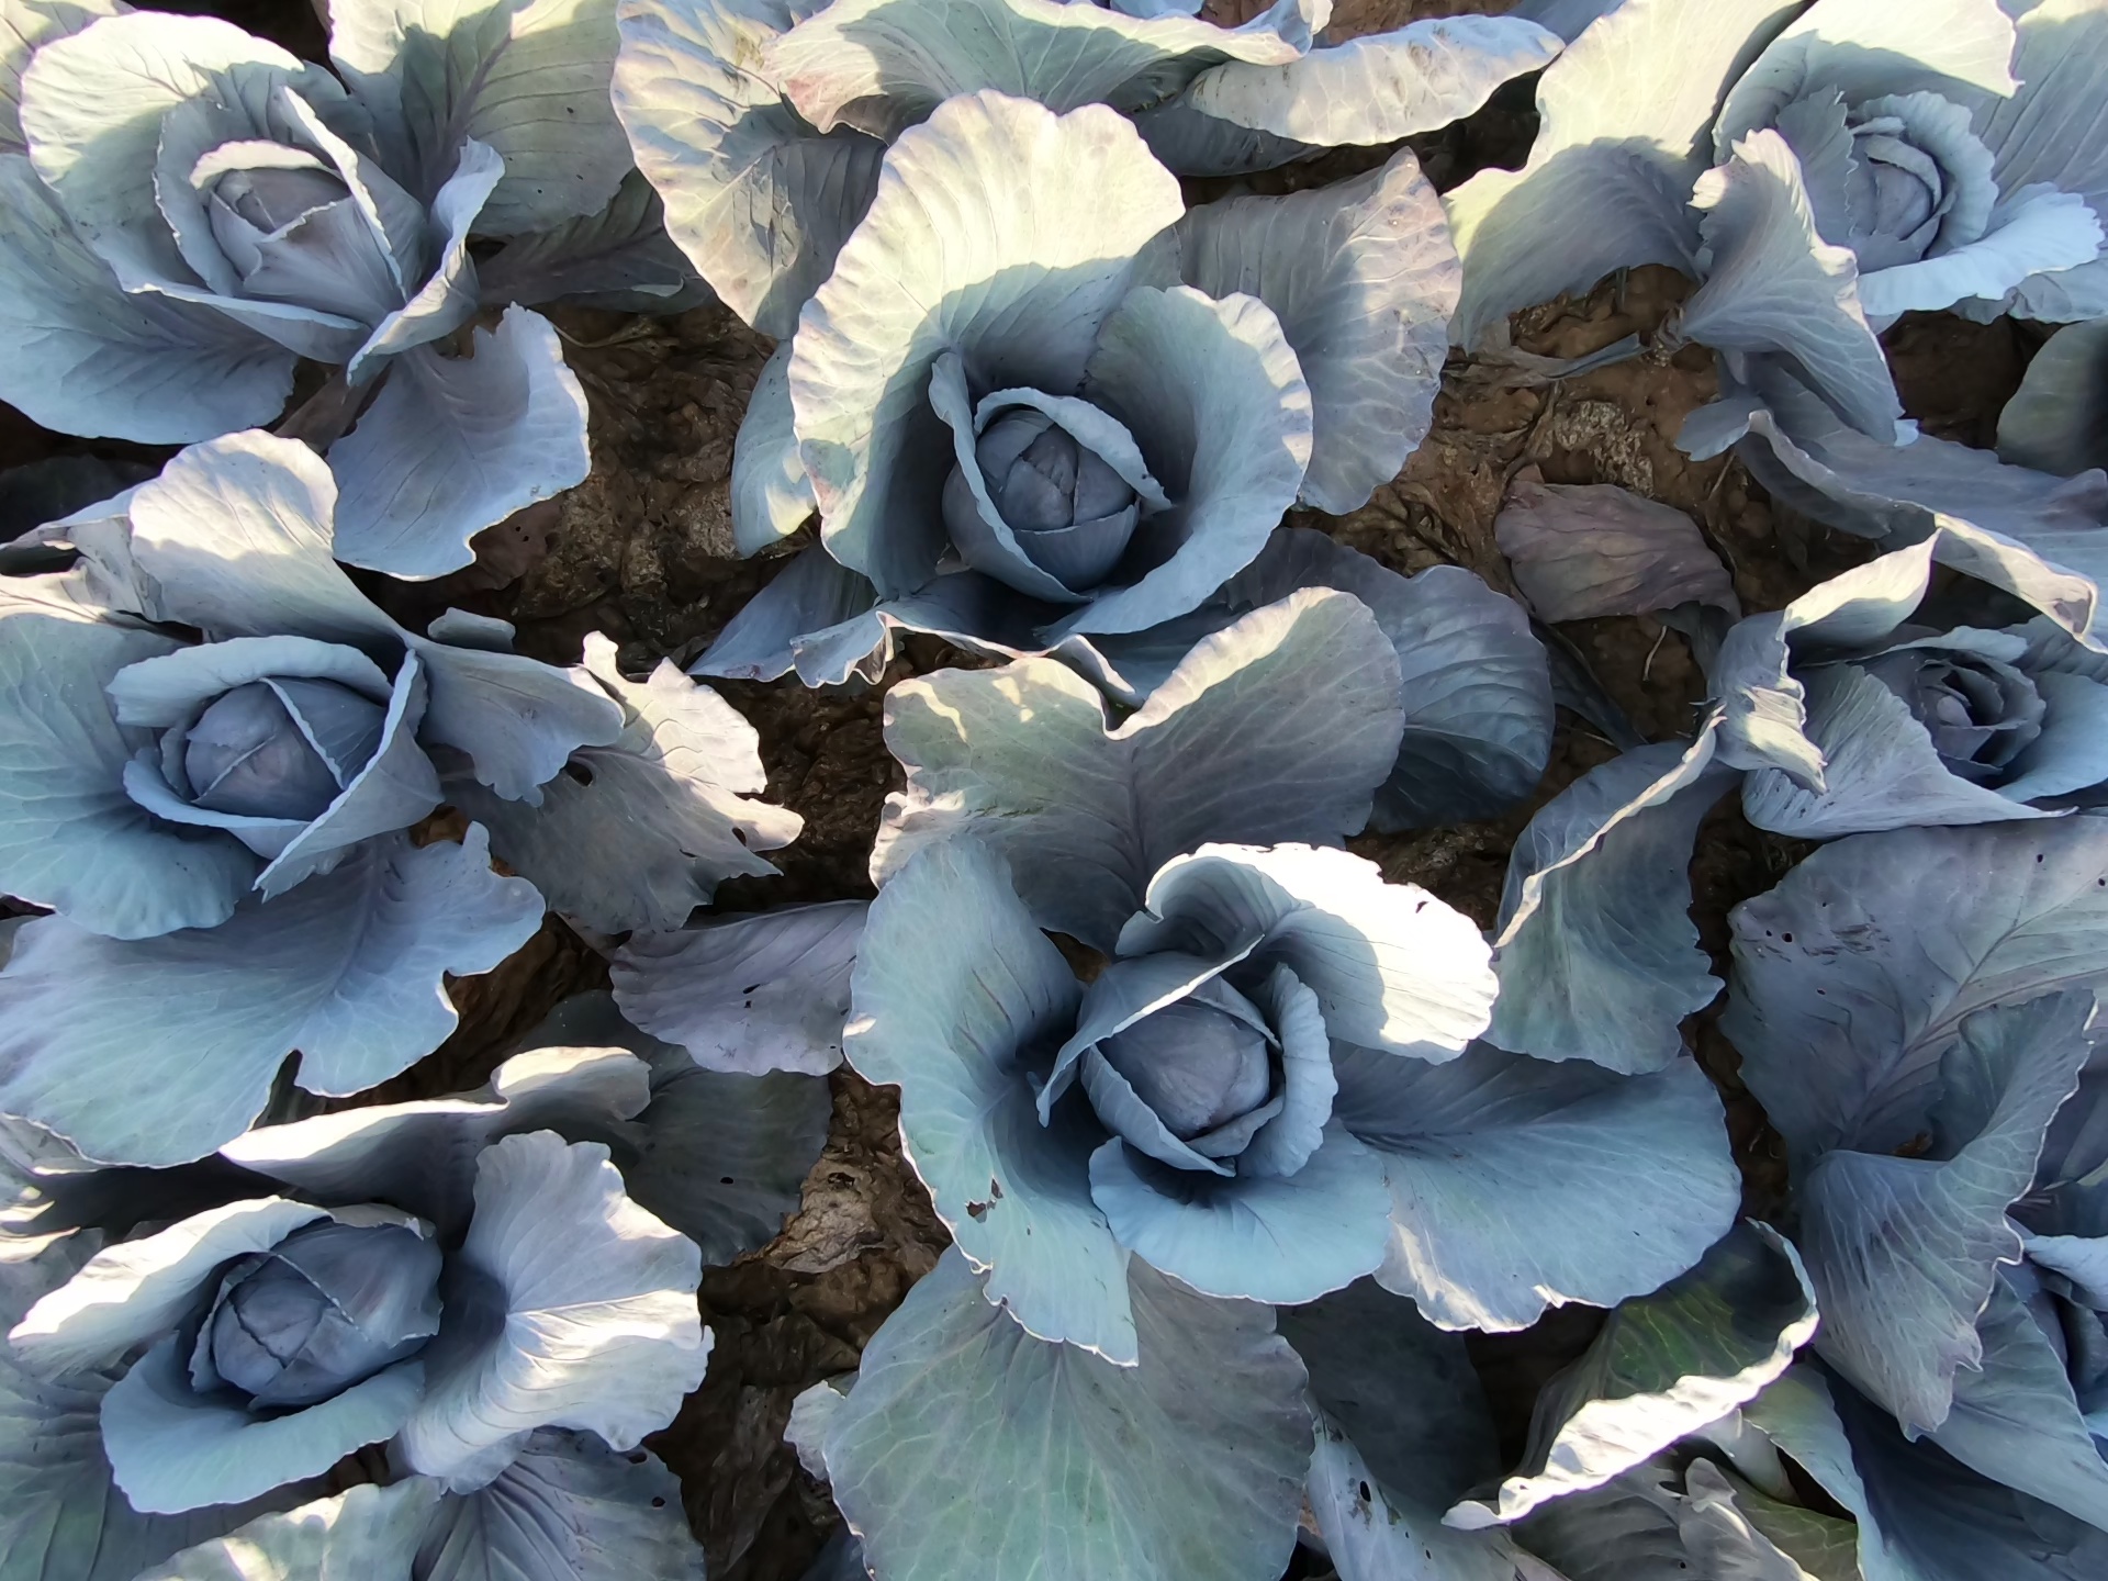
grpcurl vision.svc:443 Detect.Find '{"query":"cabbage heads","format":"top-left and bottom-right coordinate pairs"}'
top-left (1815, 135), bottom-right (1947, 277)
top-left (208, 158), bottom-right (377, 311)
top-left (1094, 964), bottom-right (1267, 1154)
top-left (1890, 1244), bottom-right (2071, 1434)
top-left (210, 1213), bottom-right (426, 1405)
top-left (962, 397), bottom-right (1144, 584)
top-left (187, 682), bottom-right (380, 823)
top-left (1863, 676), bottom-right (1978, 783)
